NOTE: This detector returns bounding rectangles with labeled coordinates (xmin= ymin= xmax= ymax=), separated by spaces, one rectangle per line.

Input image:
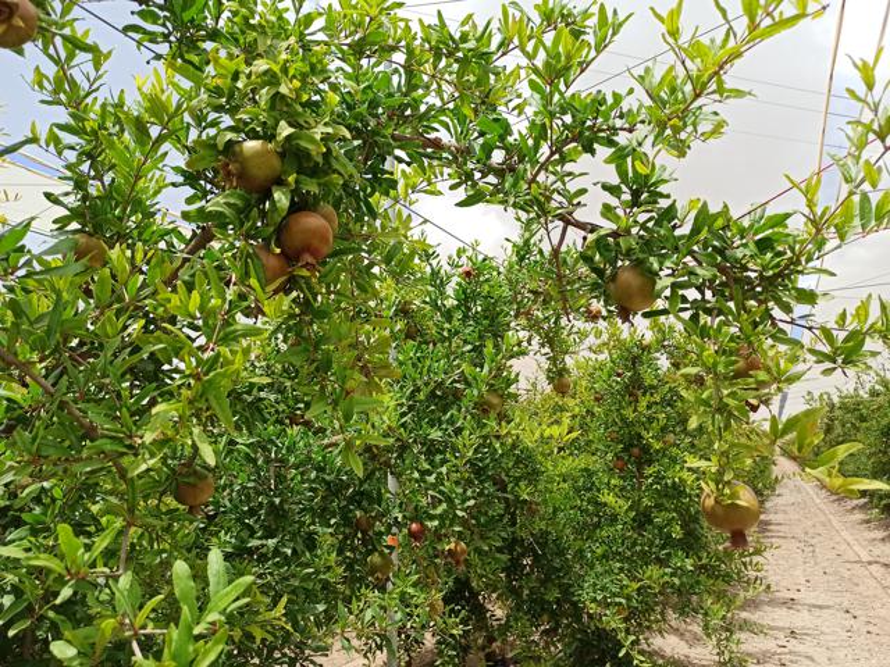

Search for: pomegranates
xmin=277 ymin=210 xmax=334 ymax=272
xmin=177 ymin=477 xmax=214 ymax=516
xmin=734 ymin=345 xmax=762 ymax=381
xmin=366 ymin=550 xmax=395 ymax=582
xmin=584 ymin=304 xmax=604 ymax=322
xmin=407 ymin=521 xmax=426 ymax=542
xmin=460 ymin=267 xmax=474 ymax=278
xmin=629 ymin=446 xmax=644 ymax=459
xmin=217 ymin=138 xmax=282 ymax=193
xmin=553 ymin=377 xmax=572 ymax=395
xmin=0 ymin=0 xmax=38 ymax=49
xmin=478 ymin=393 xmax=502 ymax=415
xmin=699 ymin=481 xmax=761 ymax=553
xmin=75 ymin=233 xmax=107 ymax=267
xmin=253 ymin=243 xmax=292 ymax=295
xmin=356 ymin=516 xmax=373 ymax=538
xmin=311 ymin=203 xmax=338 ymax=238
xmin=613 ymin=457 xmax=627 ymax=471
xmin=449 ymin=541 xmax=469 ymax=567
xmin=606 ymin=265 xmax=656 ymax=325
